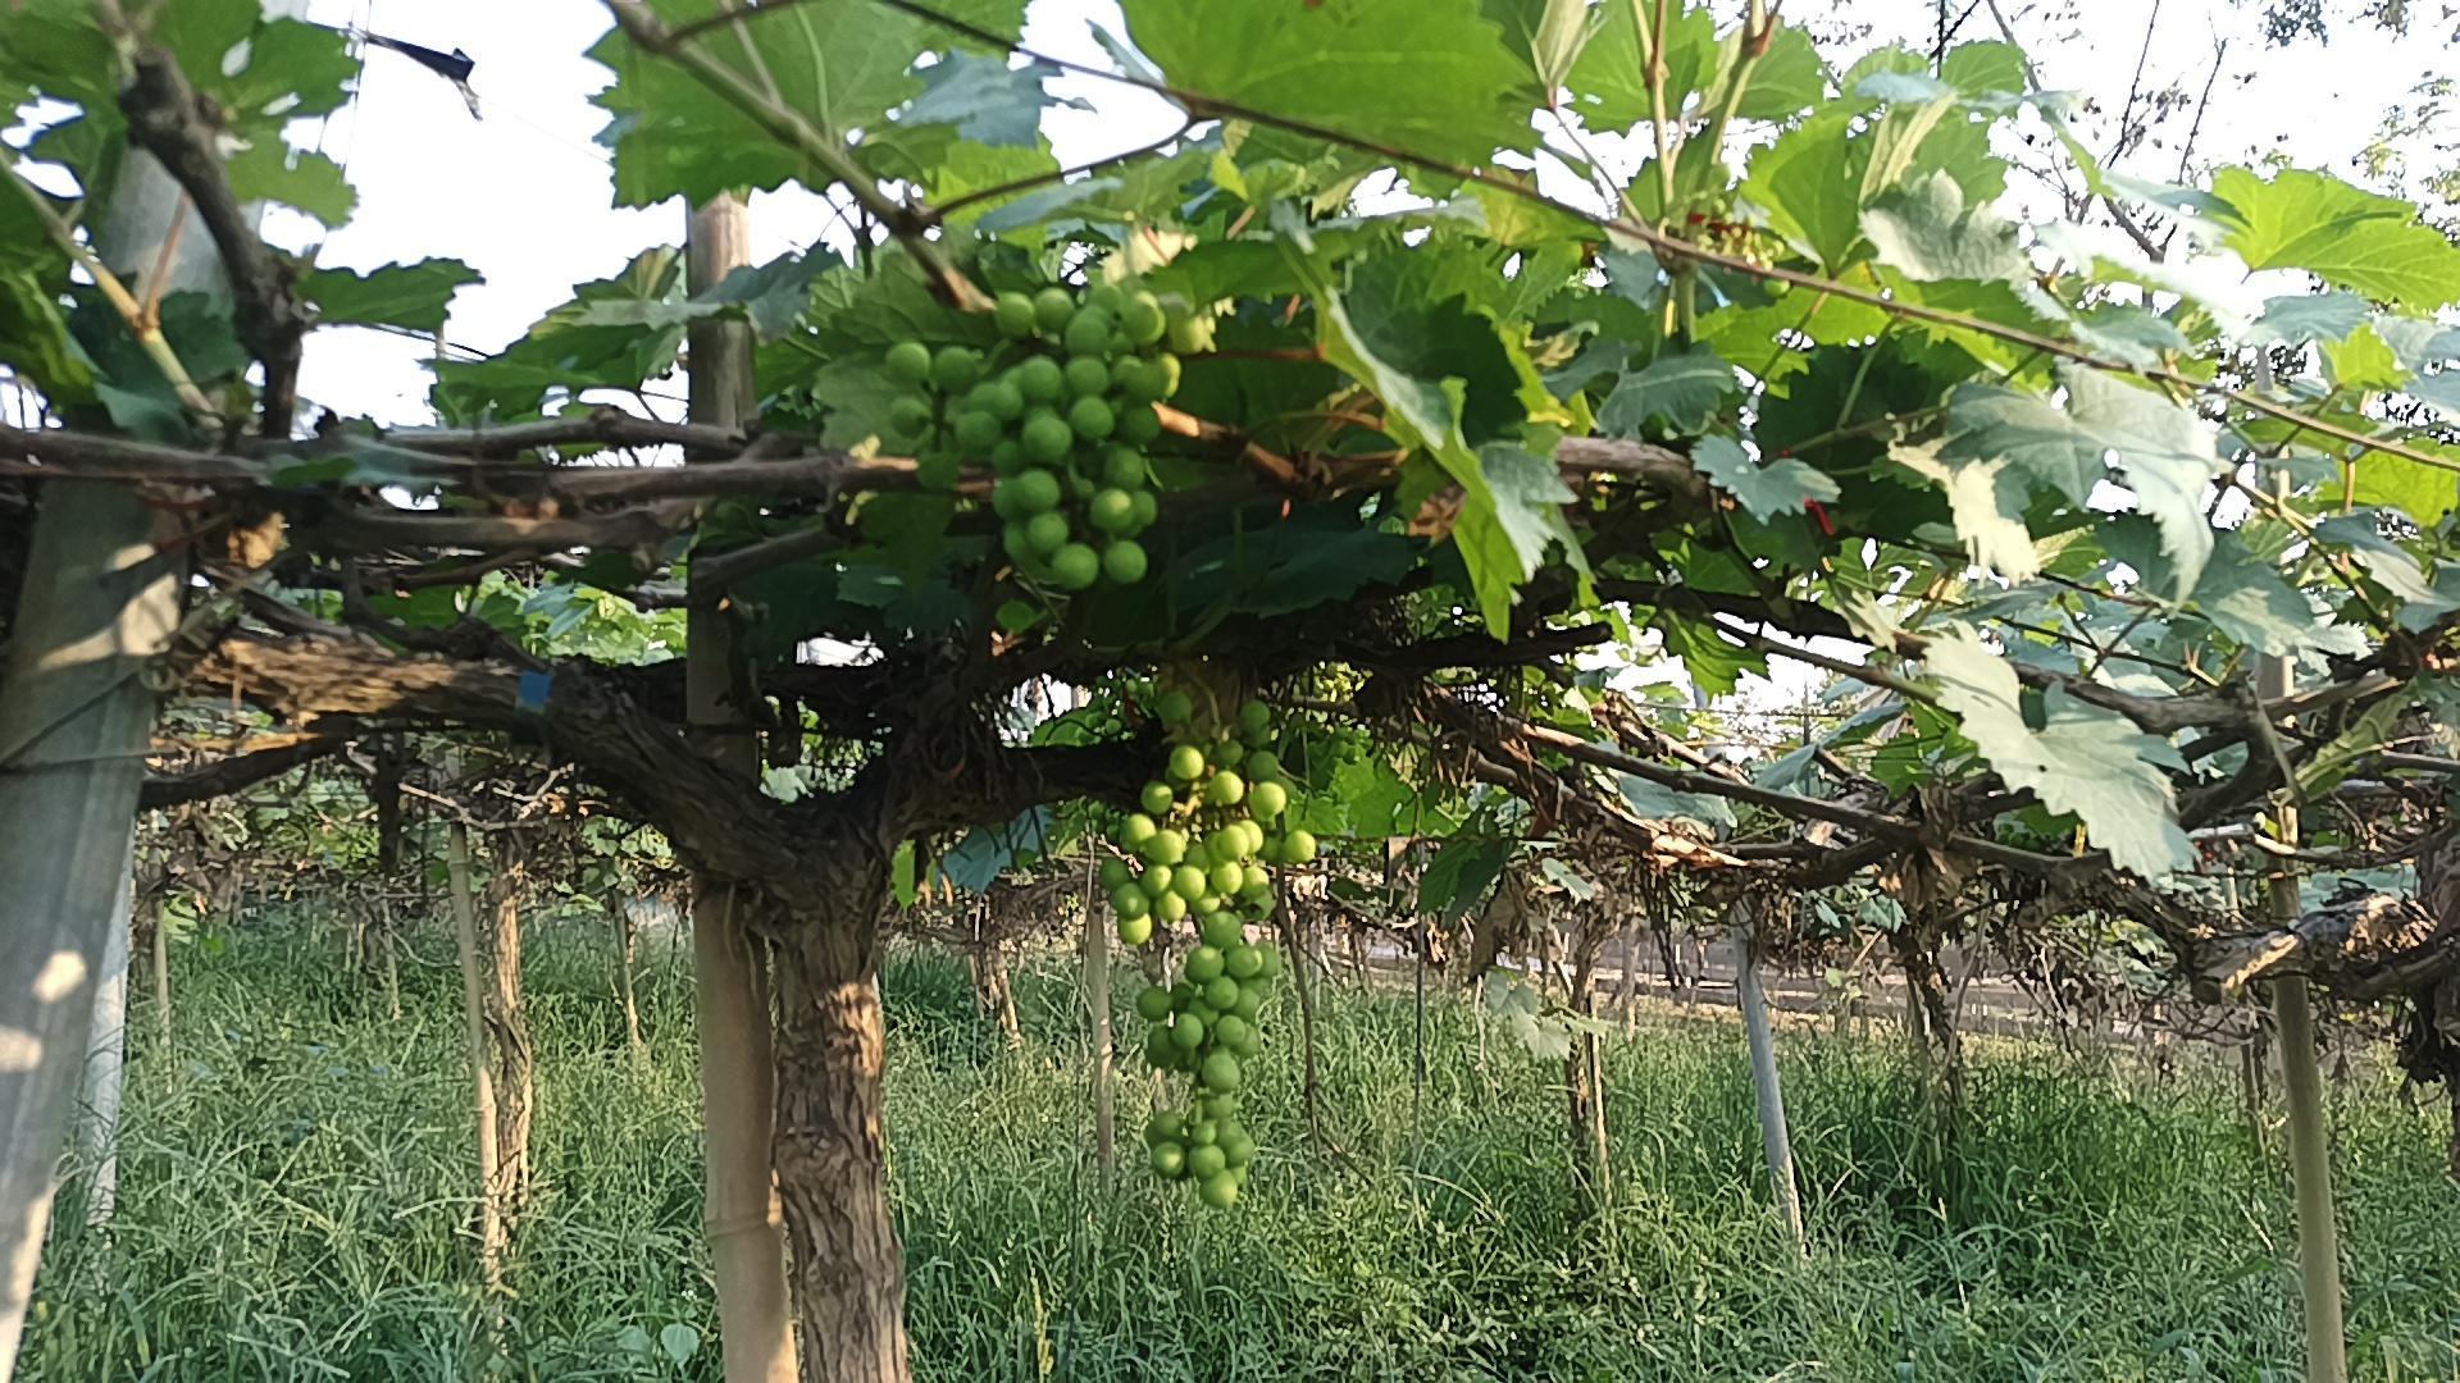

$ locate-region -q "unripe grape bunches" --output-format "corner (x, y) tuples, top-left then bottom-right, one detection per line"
(884, 287), (1204, 589)
(1102, 690), (1313, 1206)
(1079, 677), (1158, 744)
